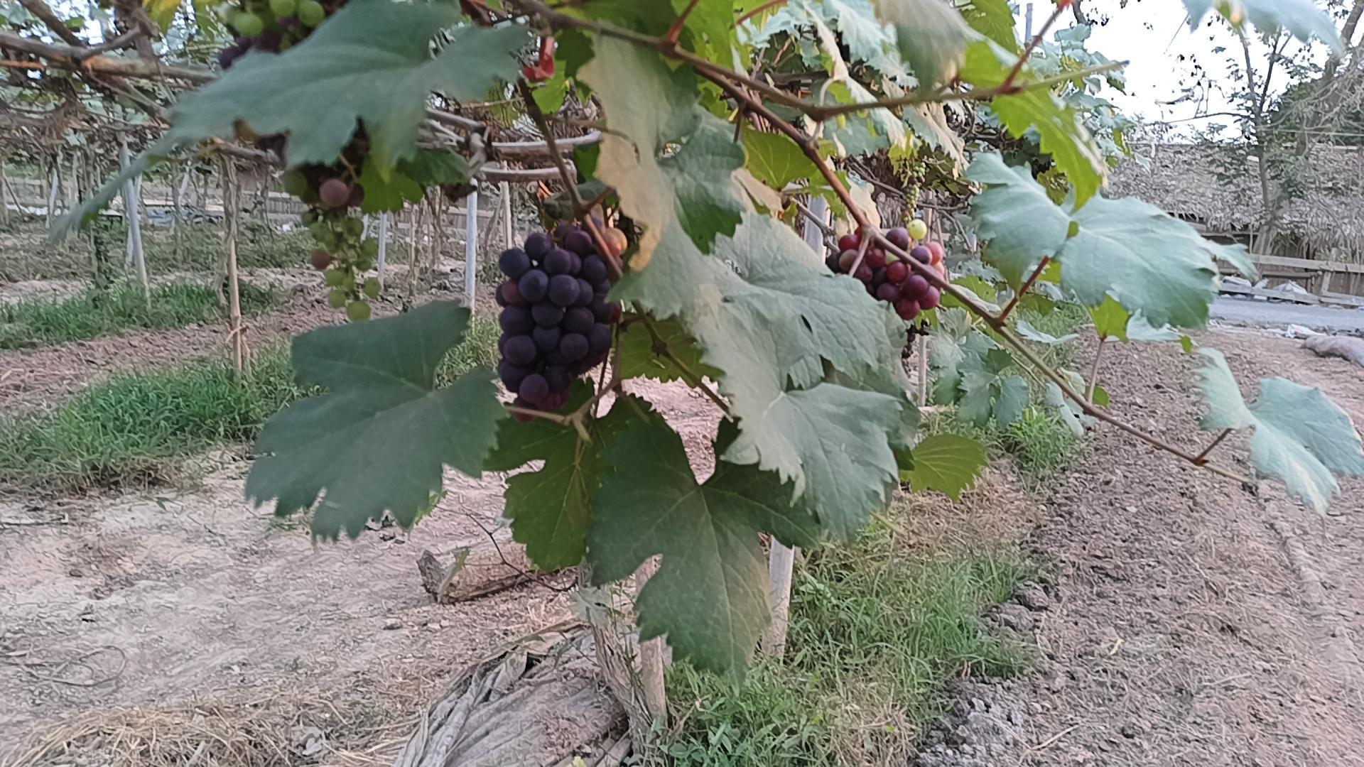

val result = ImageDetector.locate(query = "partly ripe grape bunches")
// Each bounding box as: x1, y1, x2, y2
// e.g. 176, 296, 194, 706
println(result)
495, 217, 629, 422
825, 218, 947, 320
252, 118, 381, 320
219, 0, 345, 68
